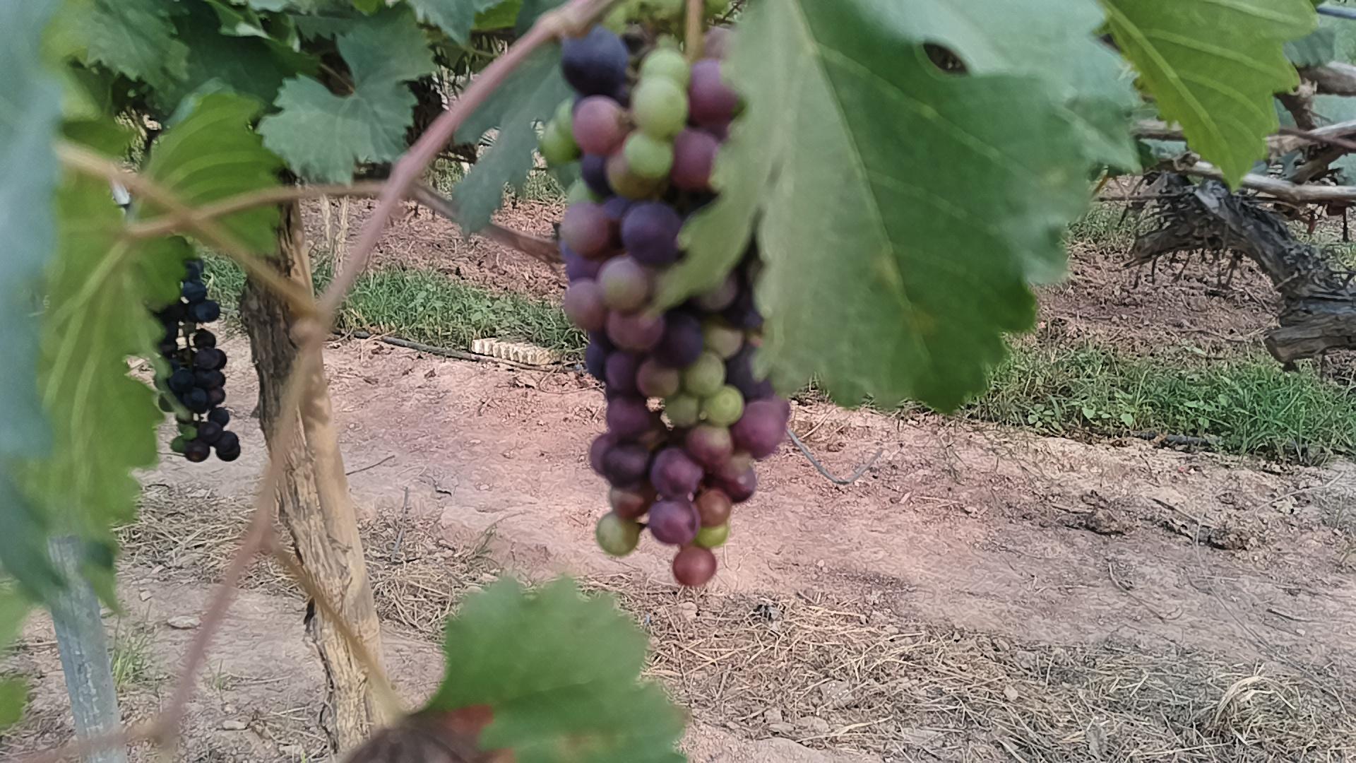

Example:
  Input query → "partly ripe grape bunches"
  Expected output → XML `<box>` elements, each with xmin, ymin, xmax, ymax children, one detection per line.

<box><xmin>155</xmin><ymin>258</ymin><xmax>241</xmax><ymax>462</ymax></box>
<box><xmin>541</xmin><ymin>23</ymin><xmax>789</xmax><ymax>586</ymax></box>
